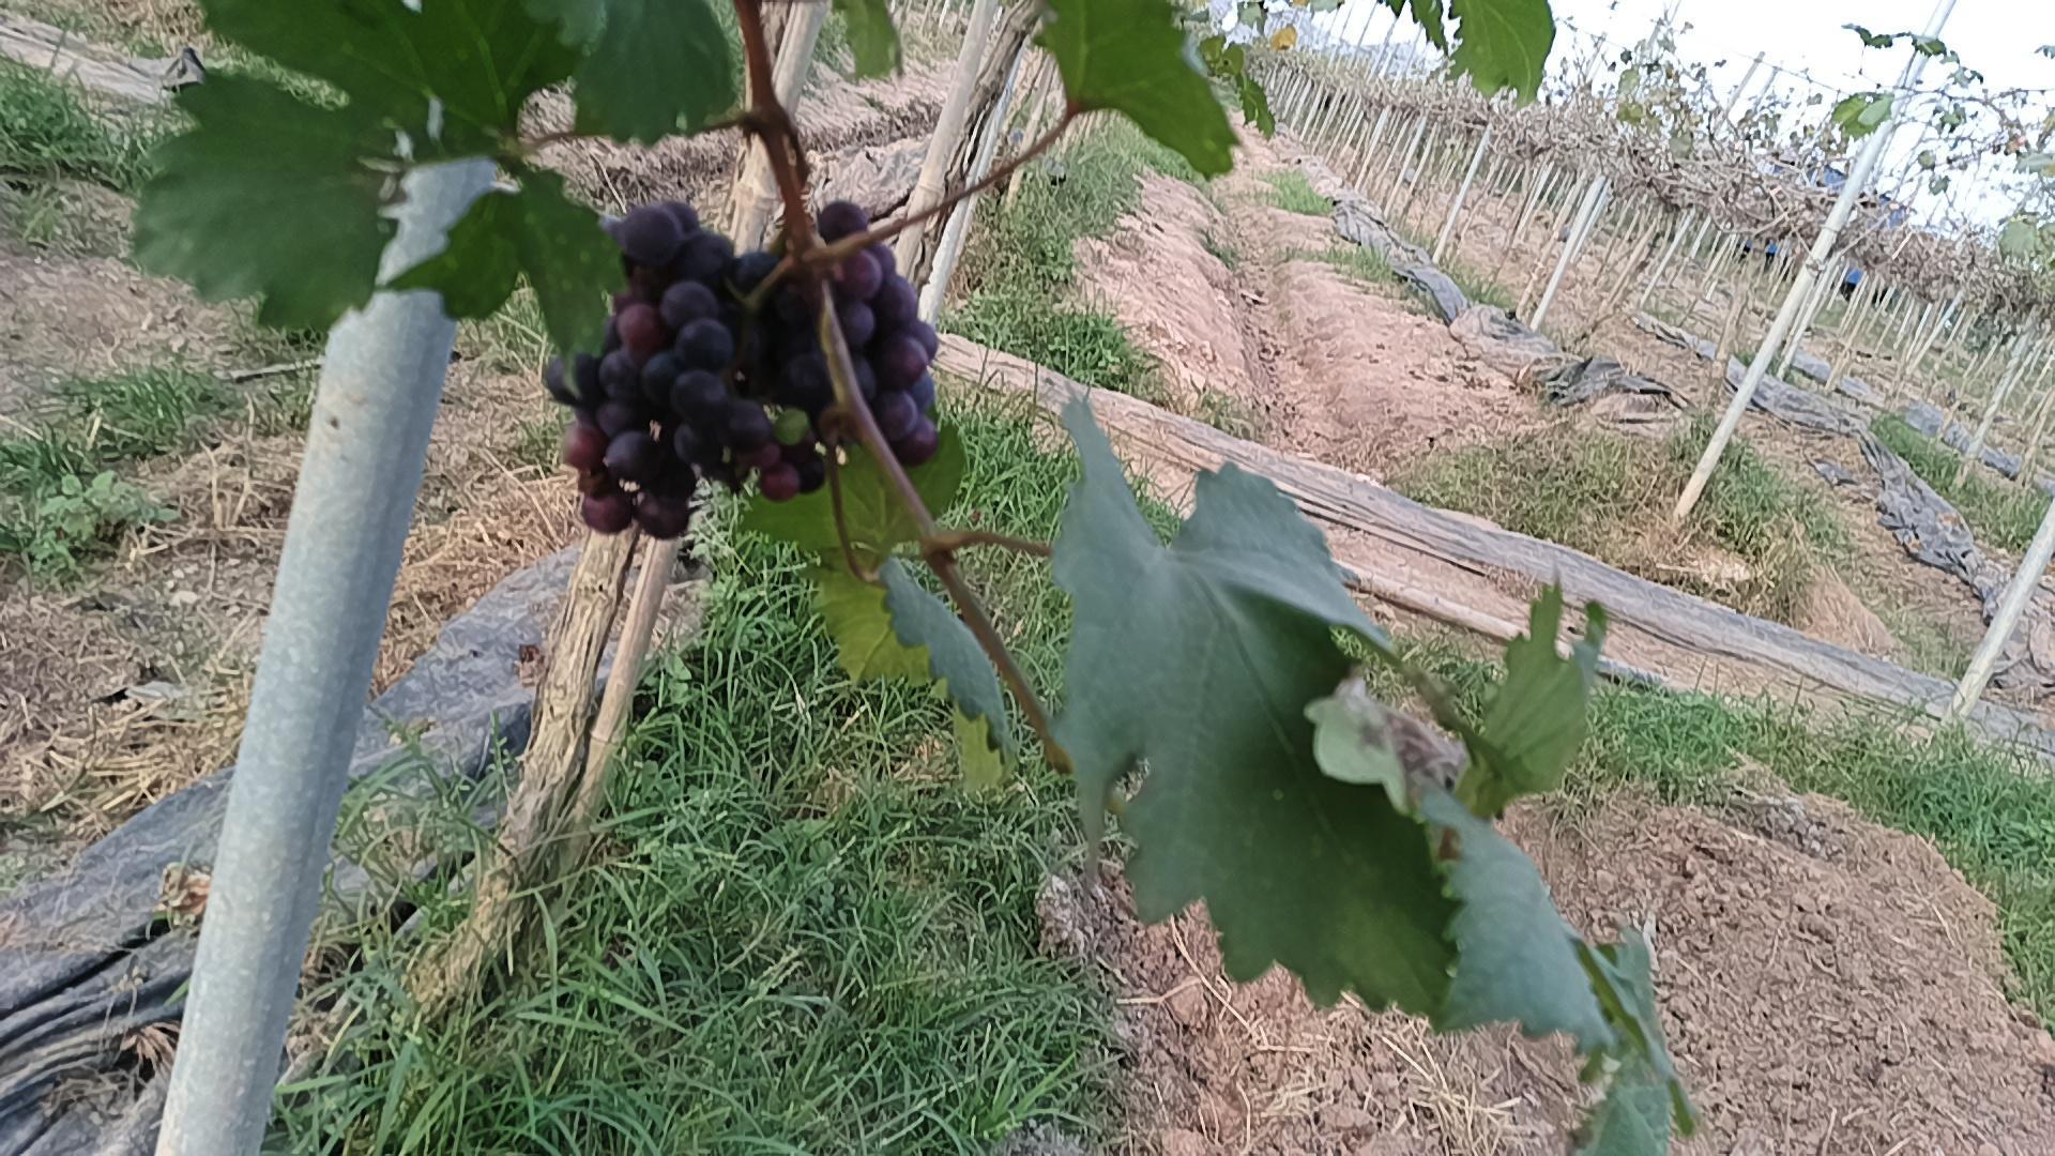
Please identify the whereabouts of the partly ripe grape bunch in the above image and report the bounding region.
[543,201,938,538]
